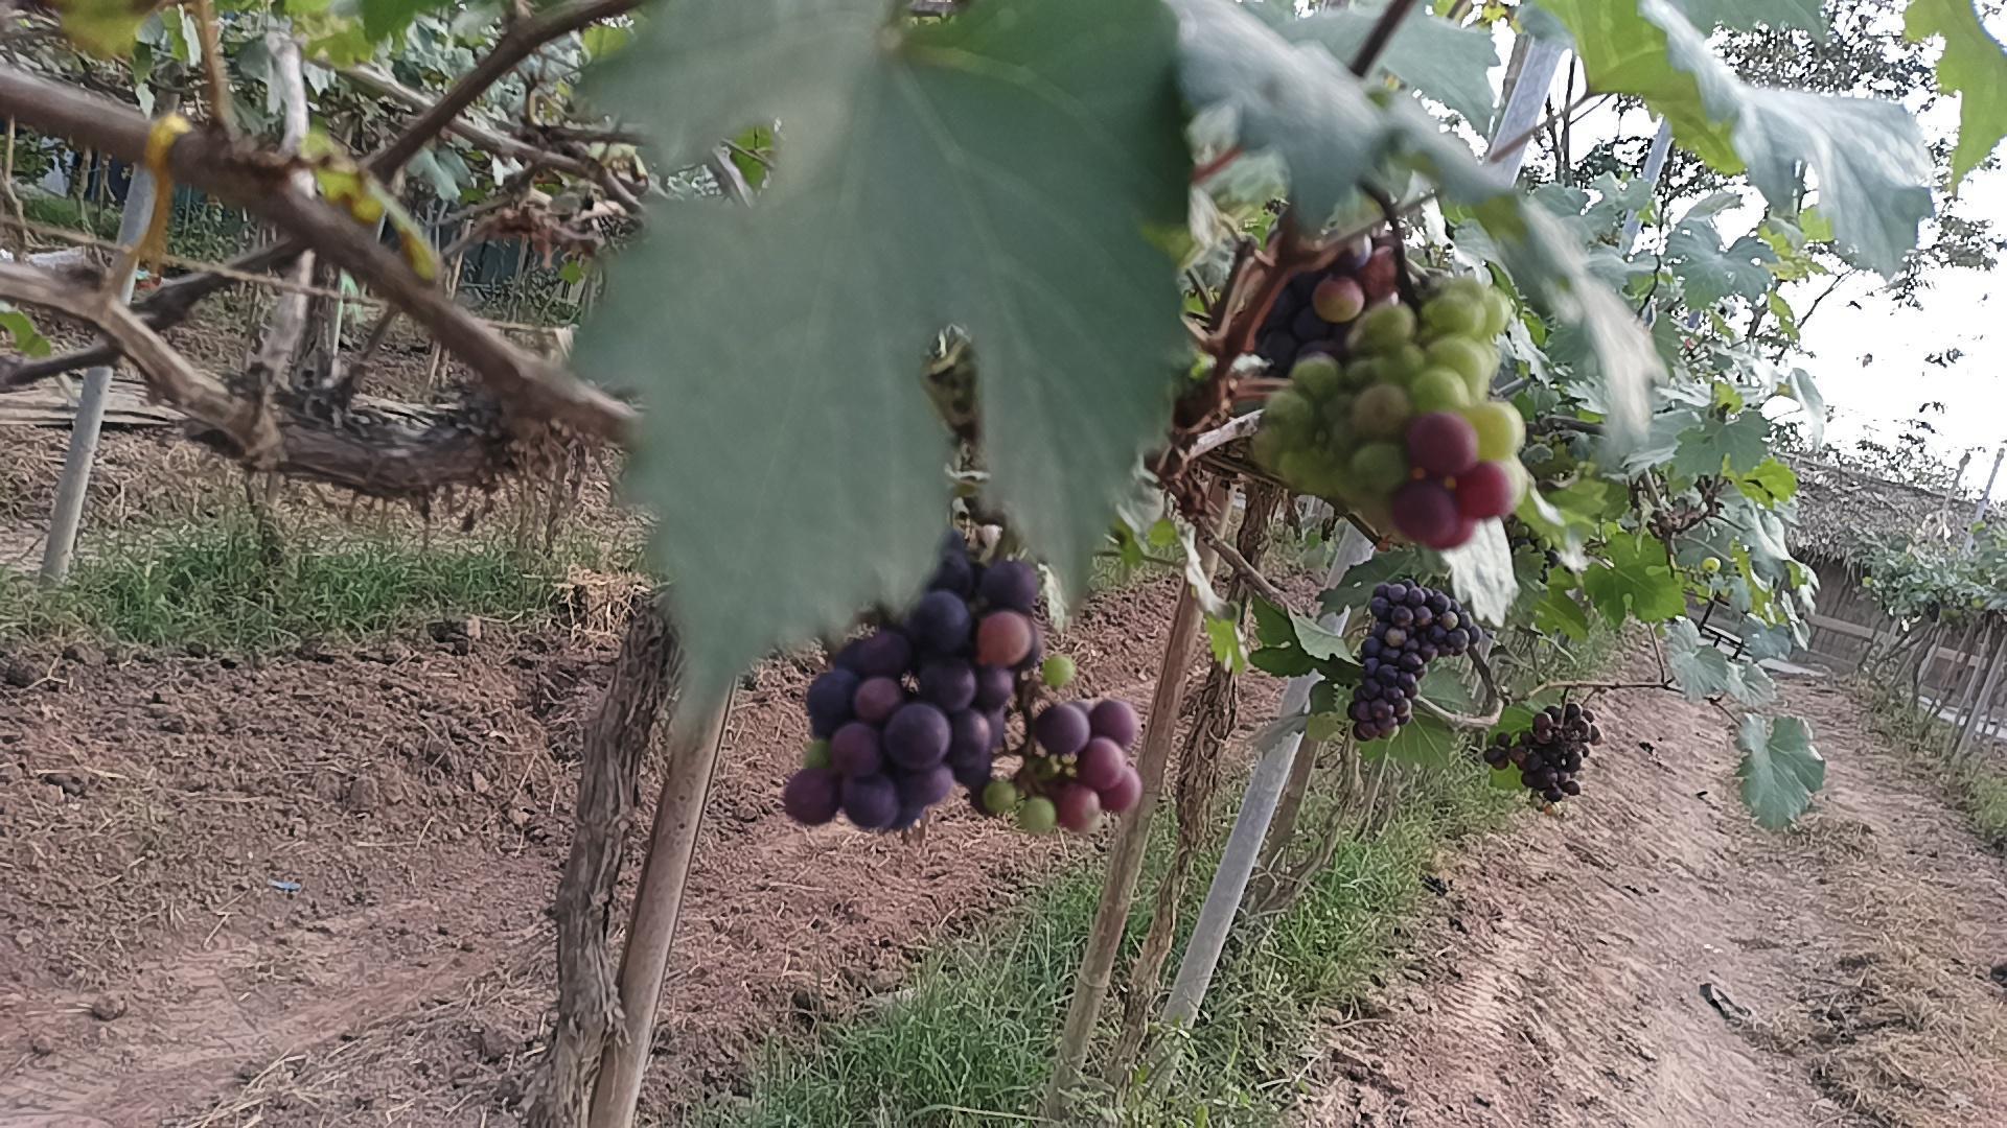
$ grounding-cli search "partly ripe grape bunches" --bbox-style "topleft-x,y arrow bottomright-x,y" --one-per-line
786,531 -> 1140,831
1253,238 -> 1527,550
1347,581 -> 1480,741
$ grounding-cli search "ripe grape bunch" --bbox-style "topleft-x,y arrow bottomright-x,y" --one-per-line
1481,698 -> 1600,807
